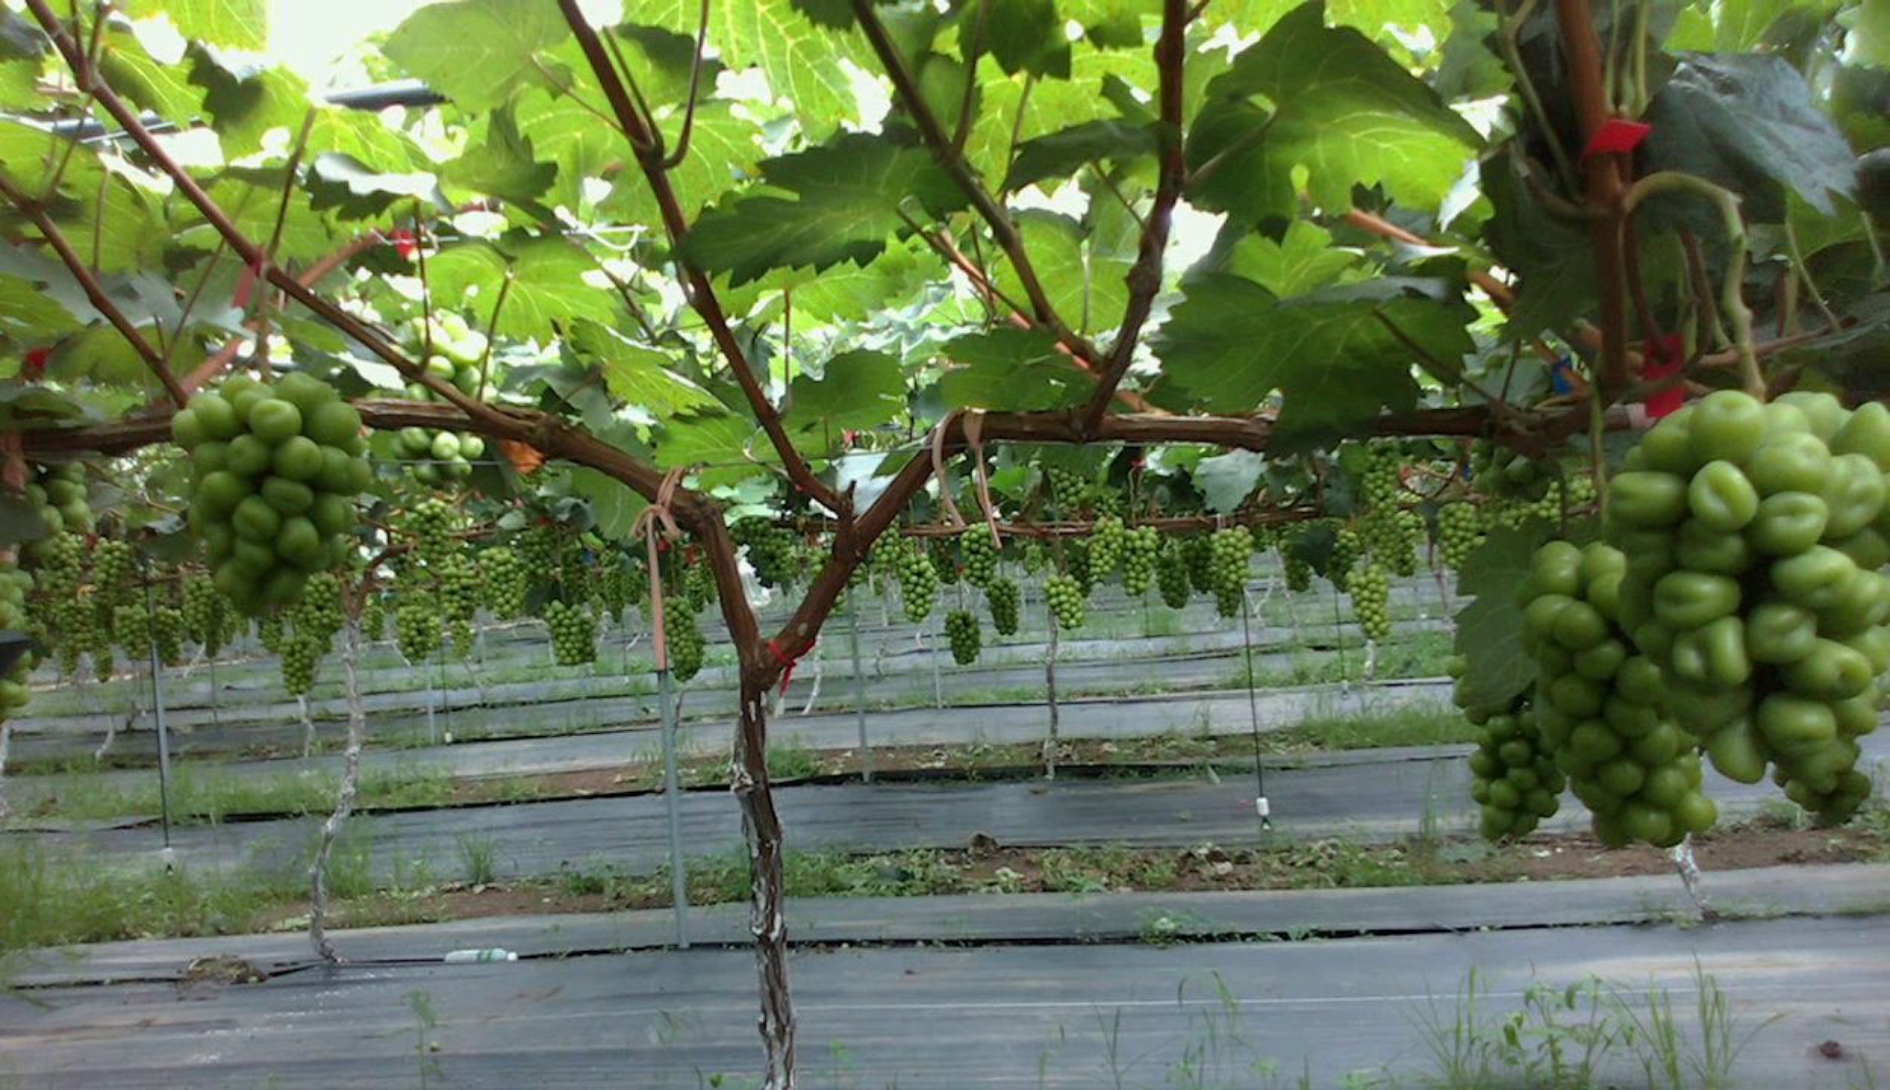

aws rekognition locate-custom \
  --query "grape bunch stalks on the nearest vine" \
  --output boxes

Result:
[257,262,274,386]
[1587,354,1610,543]
[1634,171,1766,400]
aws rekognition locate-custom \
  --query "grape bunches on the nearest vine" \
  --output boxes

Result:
[1511,540,1717,849]
[170,371,371,618]
[1608,391,1888,795]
